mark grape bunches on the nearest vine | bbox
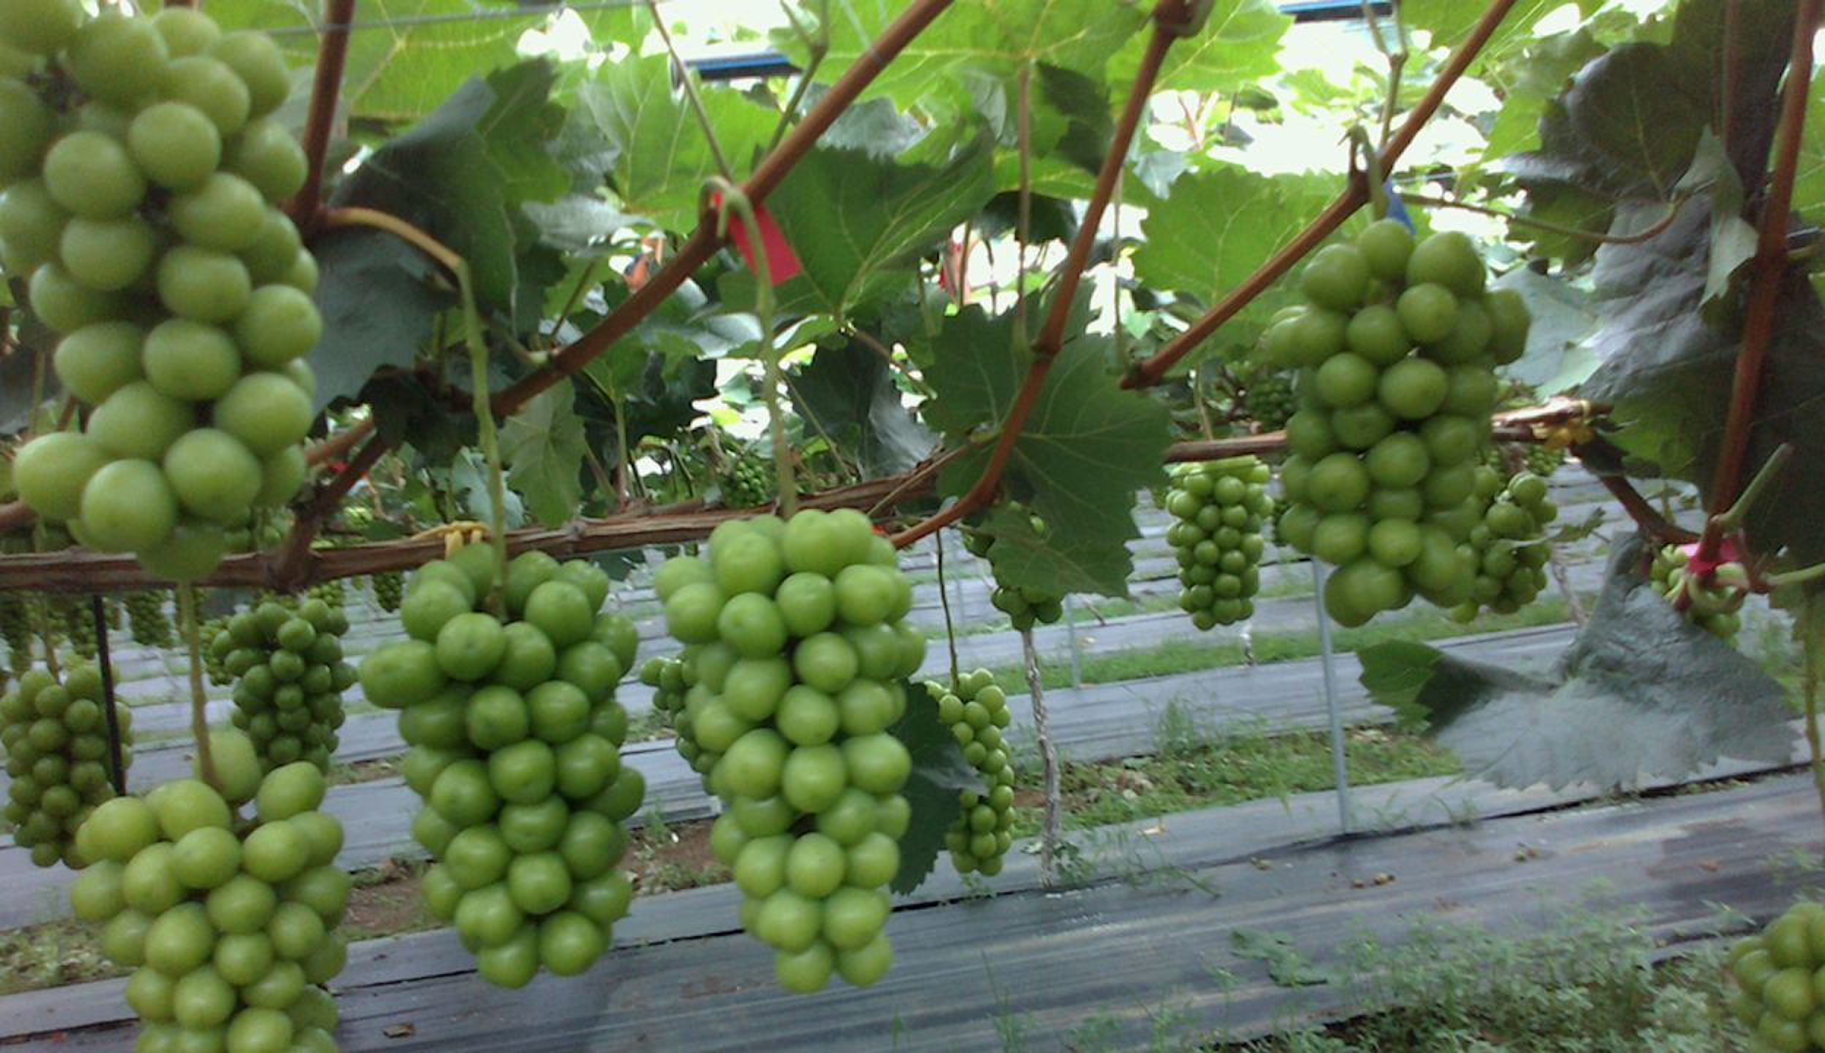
[361,544,646,987]
[1263,218,1531,624]
[0,0,322,582]
[657,510,926,997]
[73,731,349,1052]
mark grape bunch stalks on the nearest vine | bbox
[1345,127,1386,216]
[698,174,796,519]
[178,592,218,784]
[342,209,507,622]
